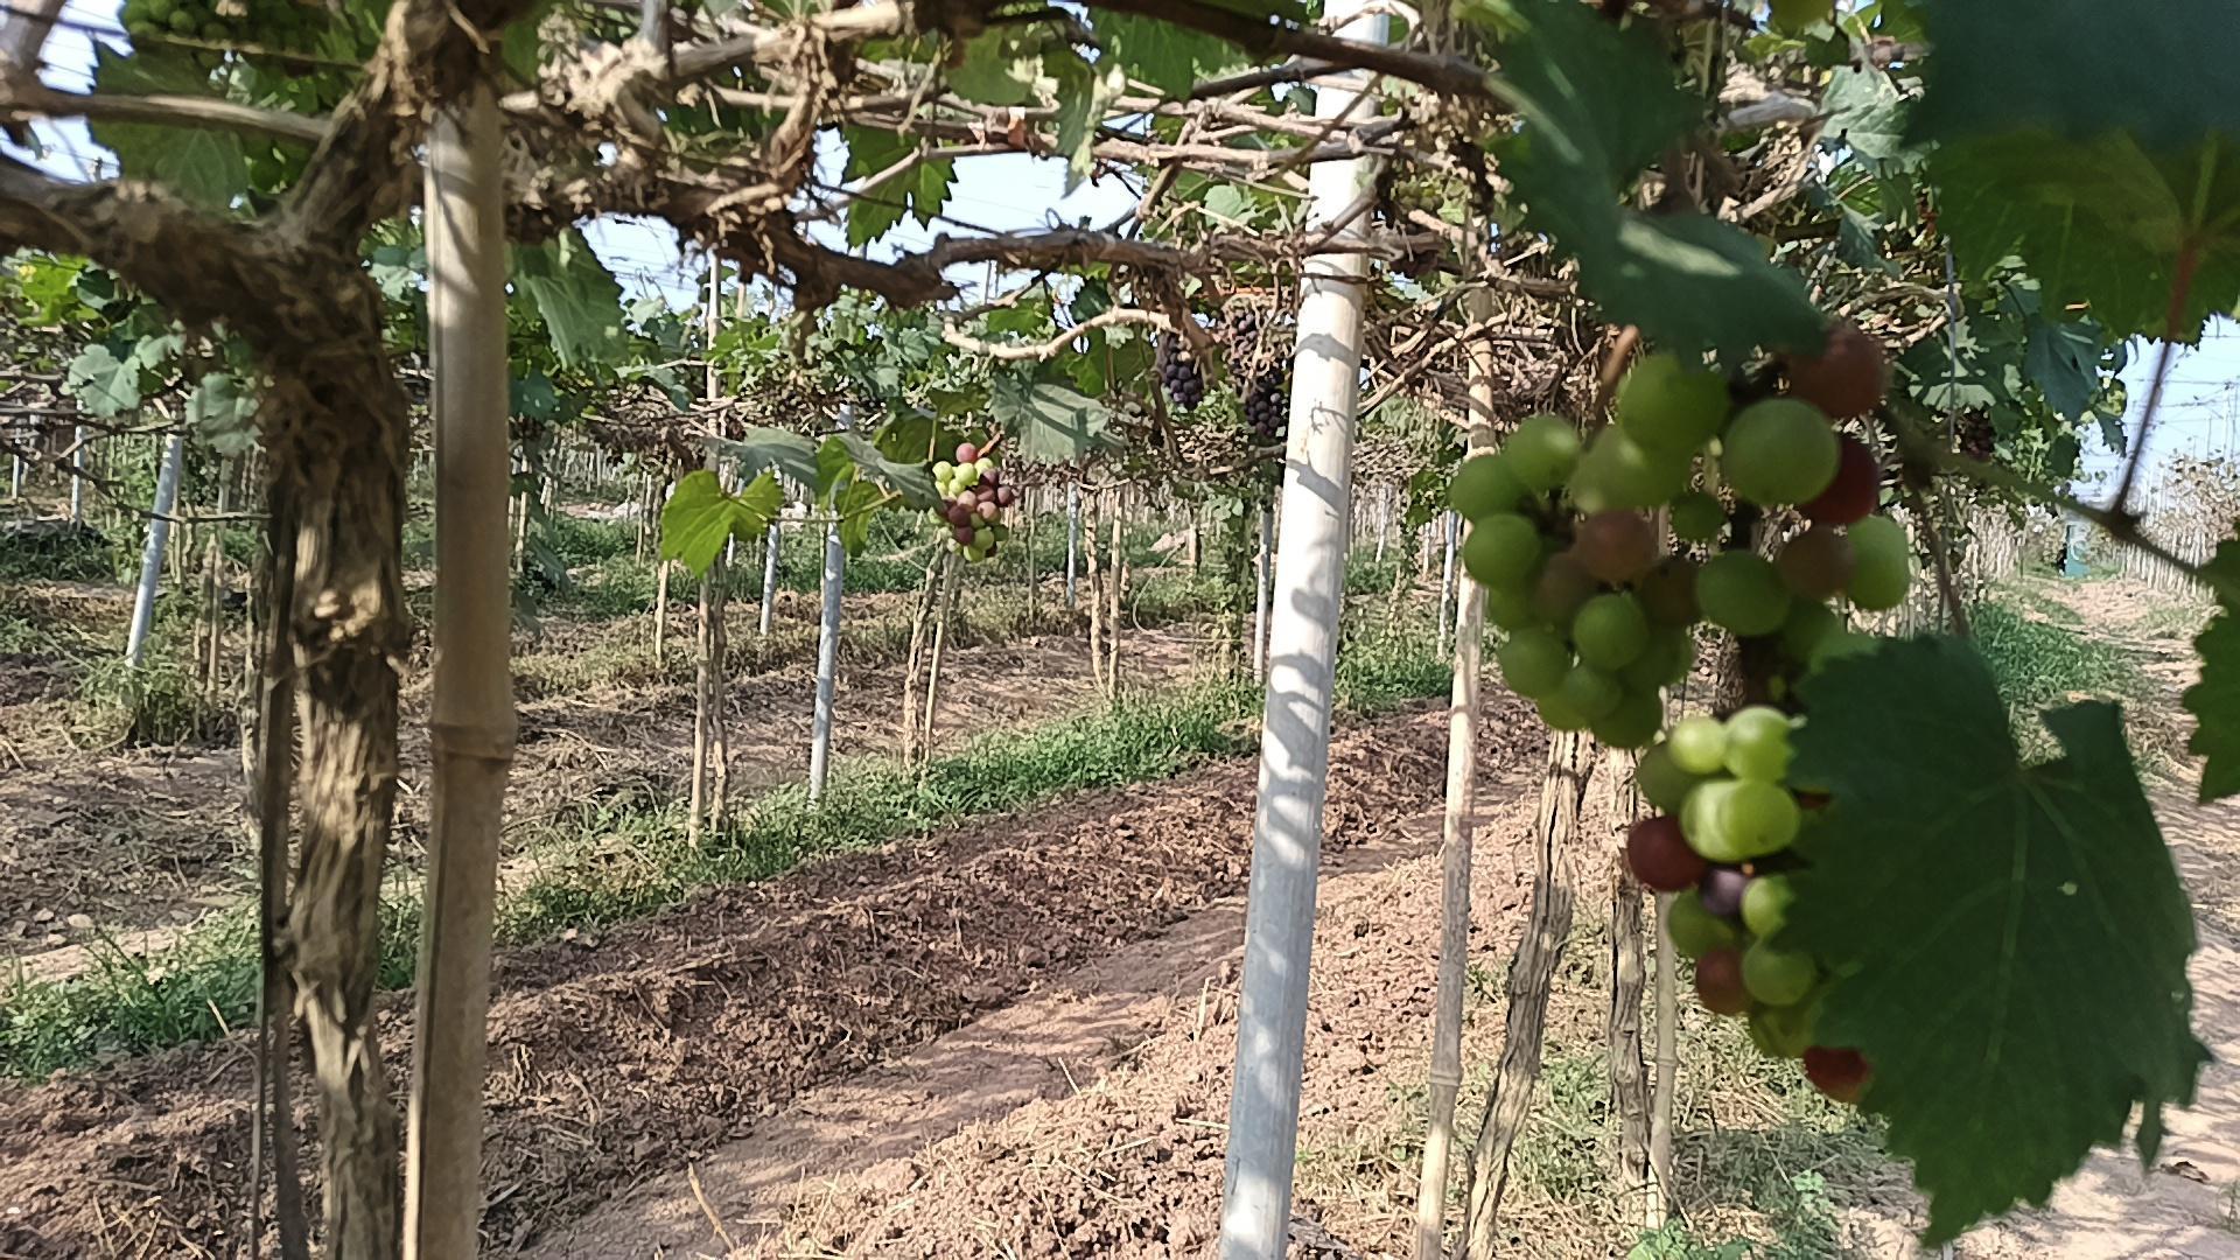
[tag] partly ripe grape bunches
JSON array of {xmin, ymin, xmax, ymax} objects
[
  {"xmin": 1448, "ymin": 316, "xmax": 1910, "ymax": 1102},
  {"xmin": 932, "ymin": 440, "xmax": 1015, "ymax": 558}
]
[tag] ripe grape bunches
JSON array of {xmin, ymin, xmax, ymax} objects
[
  {"xmin": 1154, "ymin": 327, "xmax": 1205, "ymax": 411},
  {"xmin": 1242, "ymin": 366, "xmax": 1289, "ymax": 448}
]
